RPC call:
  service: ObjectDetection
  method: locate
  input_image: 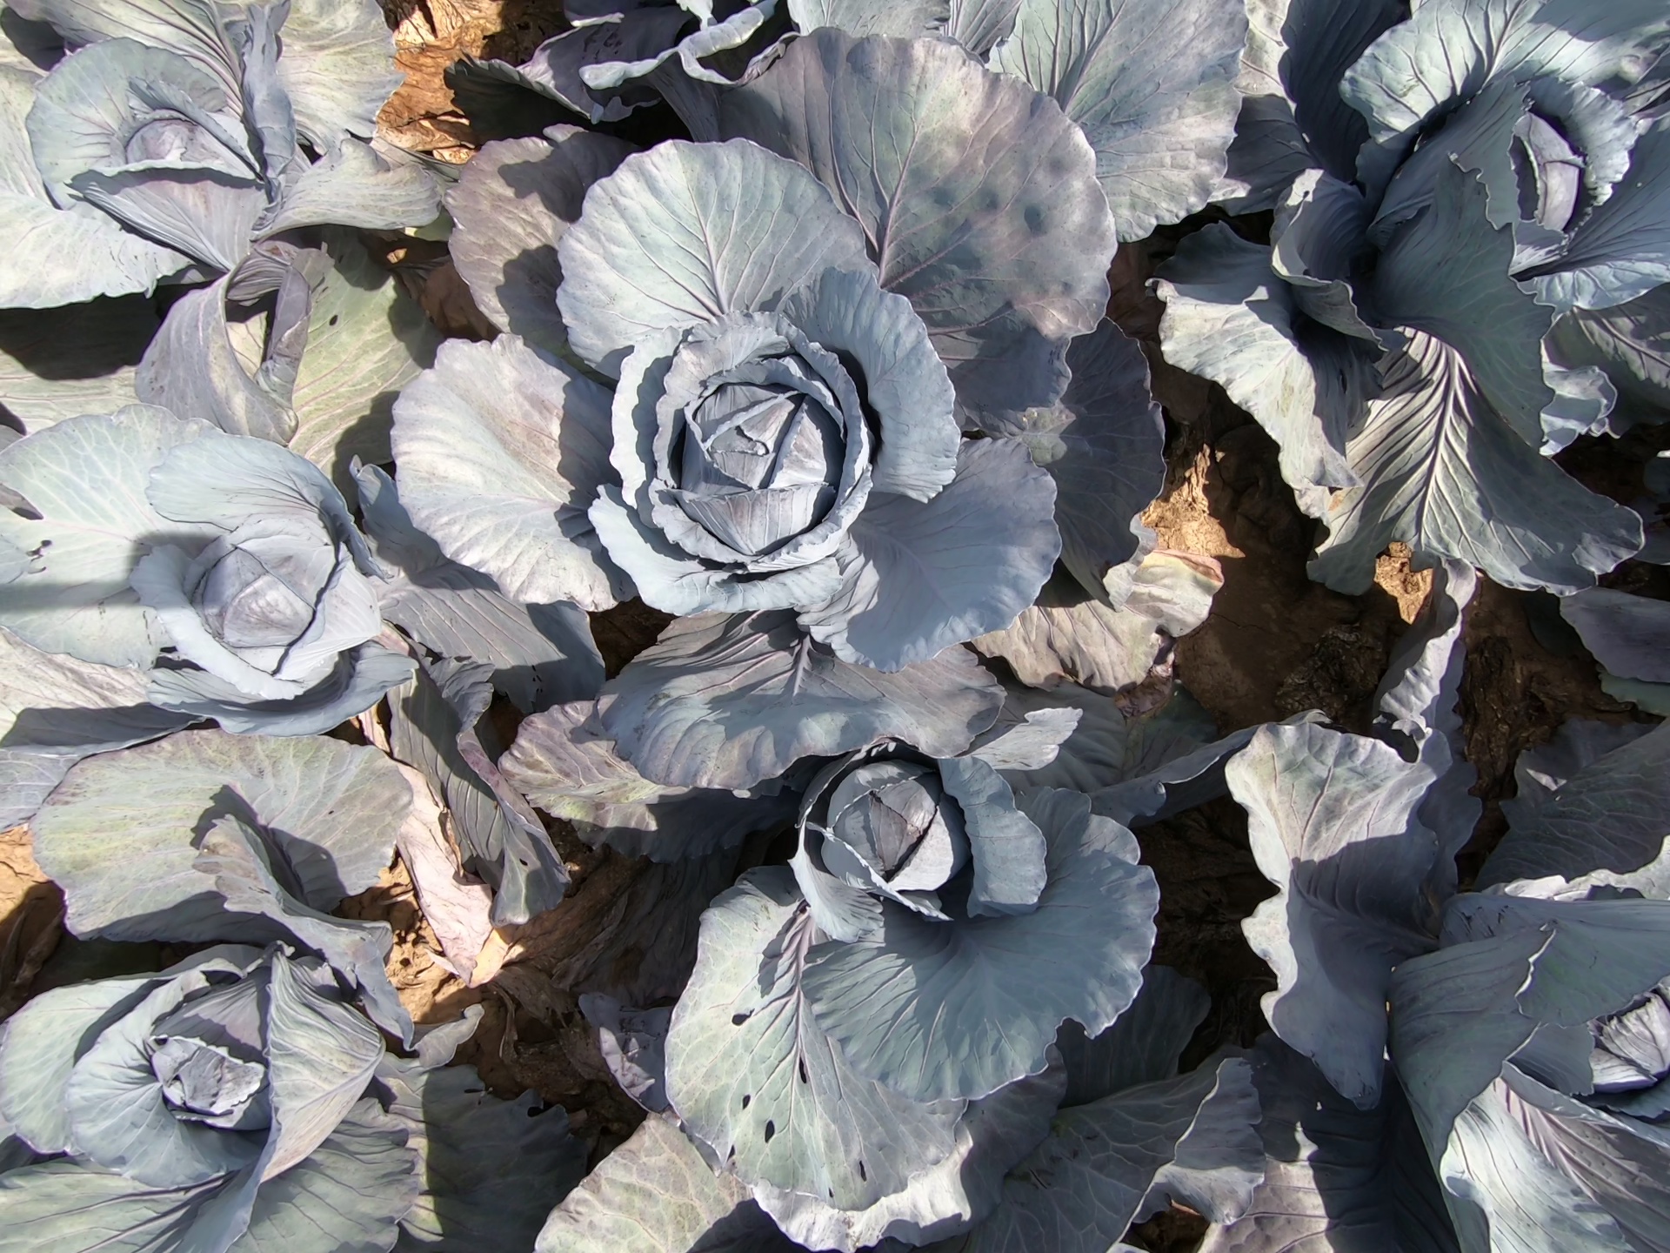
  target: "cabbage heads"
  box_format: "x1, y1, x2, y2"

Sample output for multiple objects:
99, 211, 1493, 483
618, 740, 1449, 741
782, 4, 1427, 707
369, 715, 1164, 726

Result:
1515, 939, 1665, 1095
115, 107, 263, 220
829, 767, 977, 892
152, 983, 345, 1132
678, 367, 849, 549
1432, 107, 1584, 265
190, 535, 361, 669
